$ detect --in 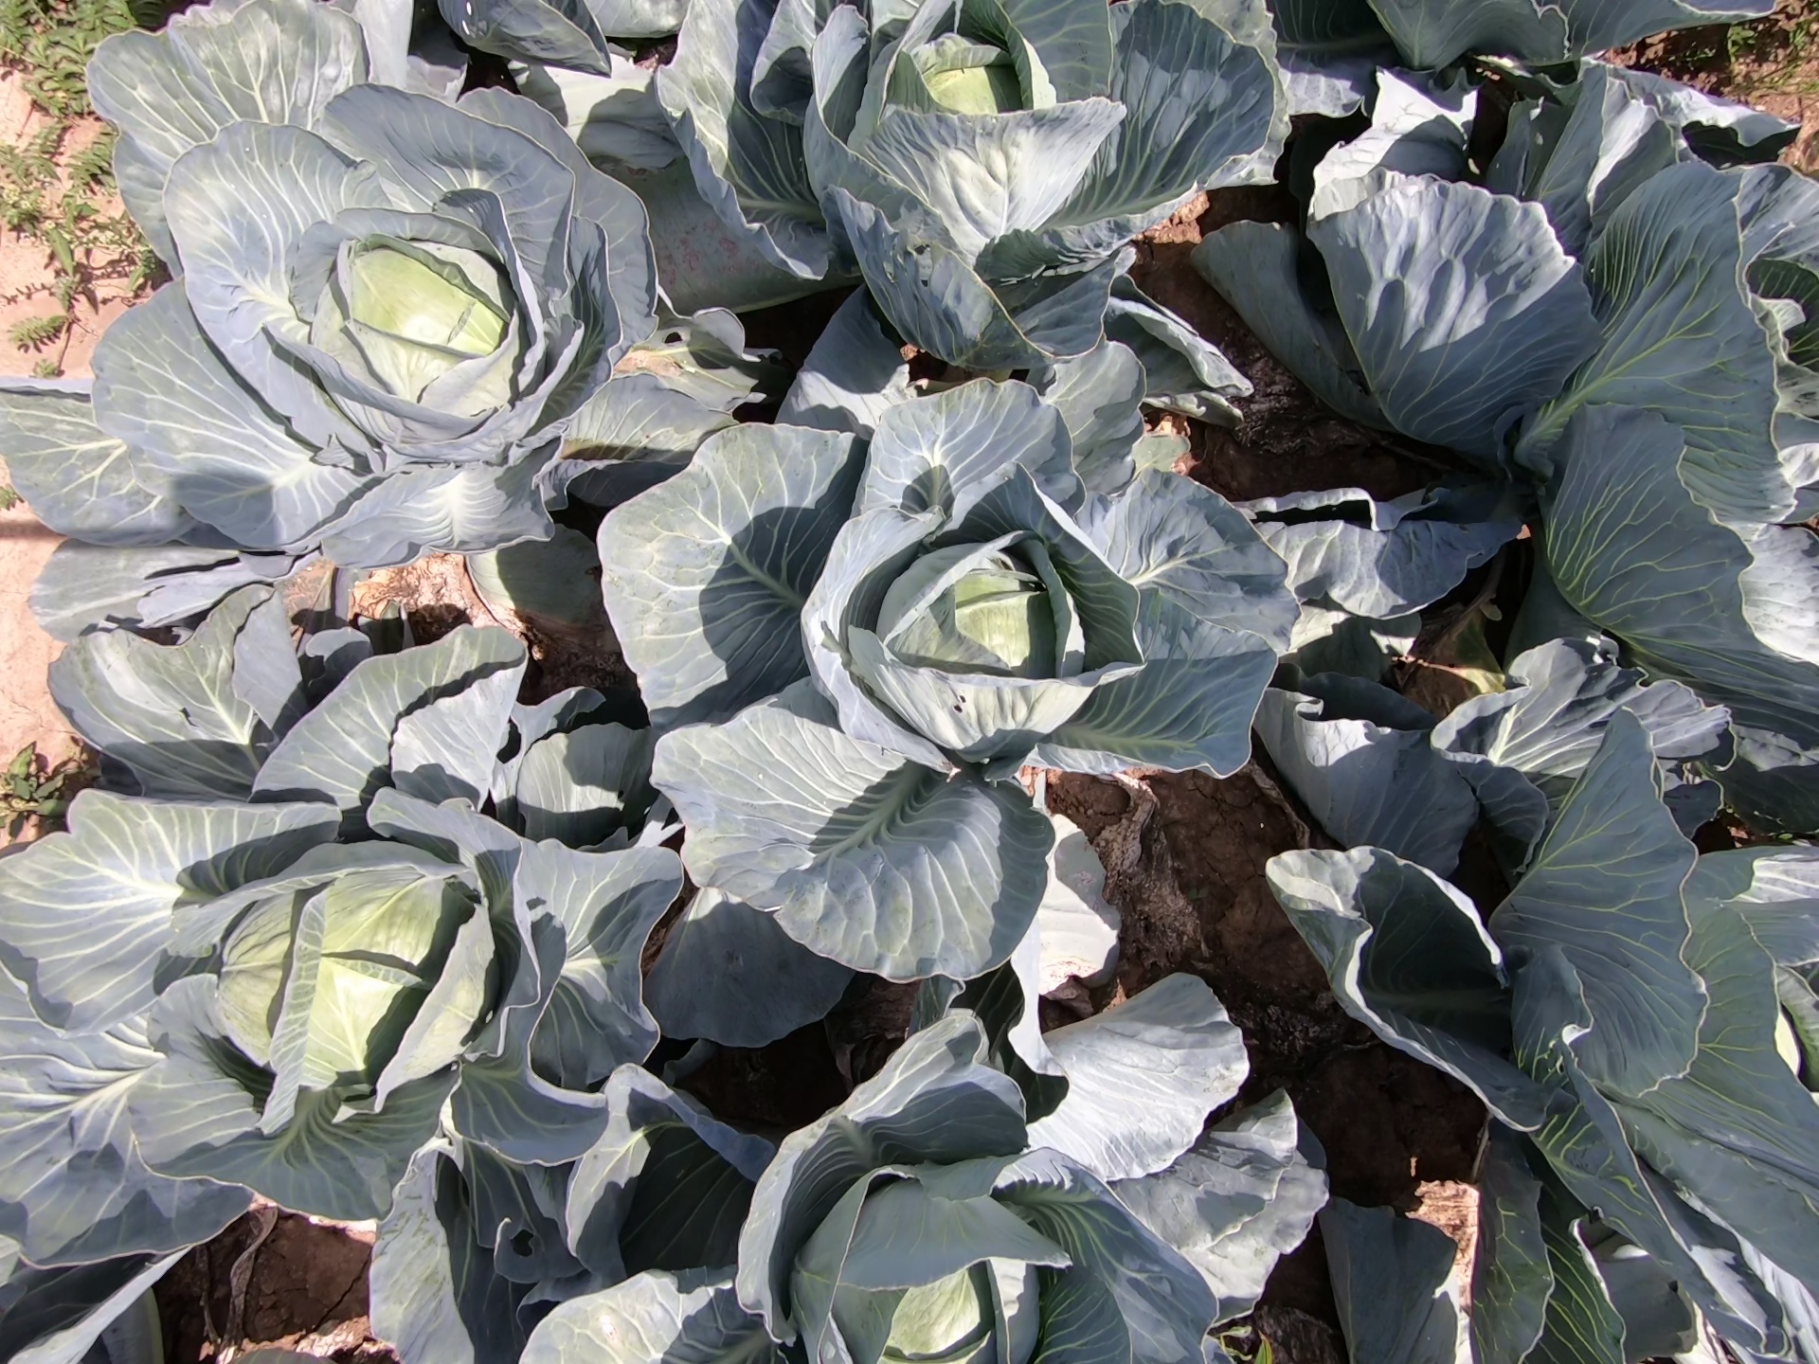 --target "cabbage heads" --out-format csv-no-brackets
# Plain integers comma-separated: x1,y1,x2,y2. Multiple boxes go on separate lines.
845,37,1057,247
801,1170,1044,1362
883,544,1084,754
215,837,497,1093
1599,945,1809,1129
309,228,540,459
